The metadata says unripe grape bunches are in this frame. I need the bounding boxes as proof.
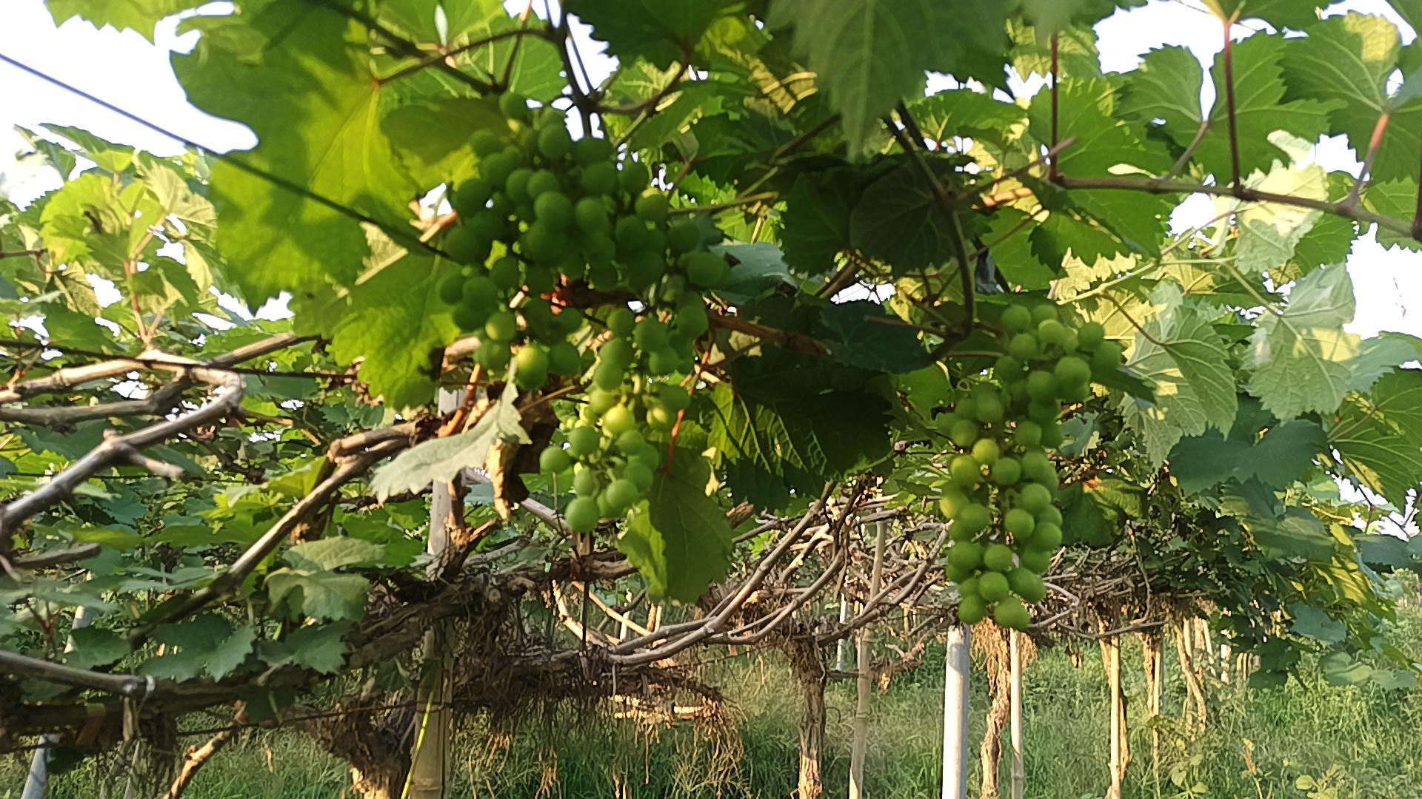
[444,108,727,529]
[939,301,1120,627]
